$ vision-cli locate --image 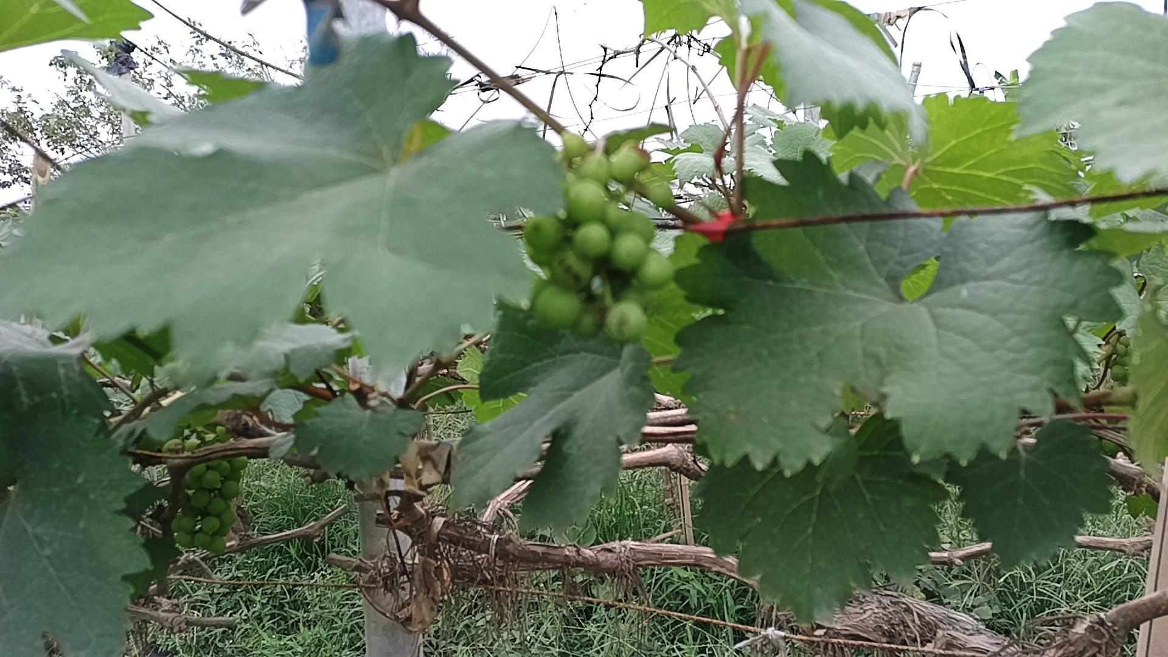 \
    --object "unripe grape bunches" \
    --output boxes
[162,427,248,555]
[521,124,675,344]
[1105,330,1131,390]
